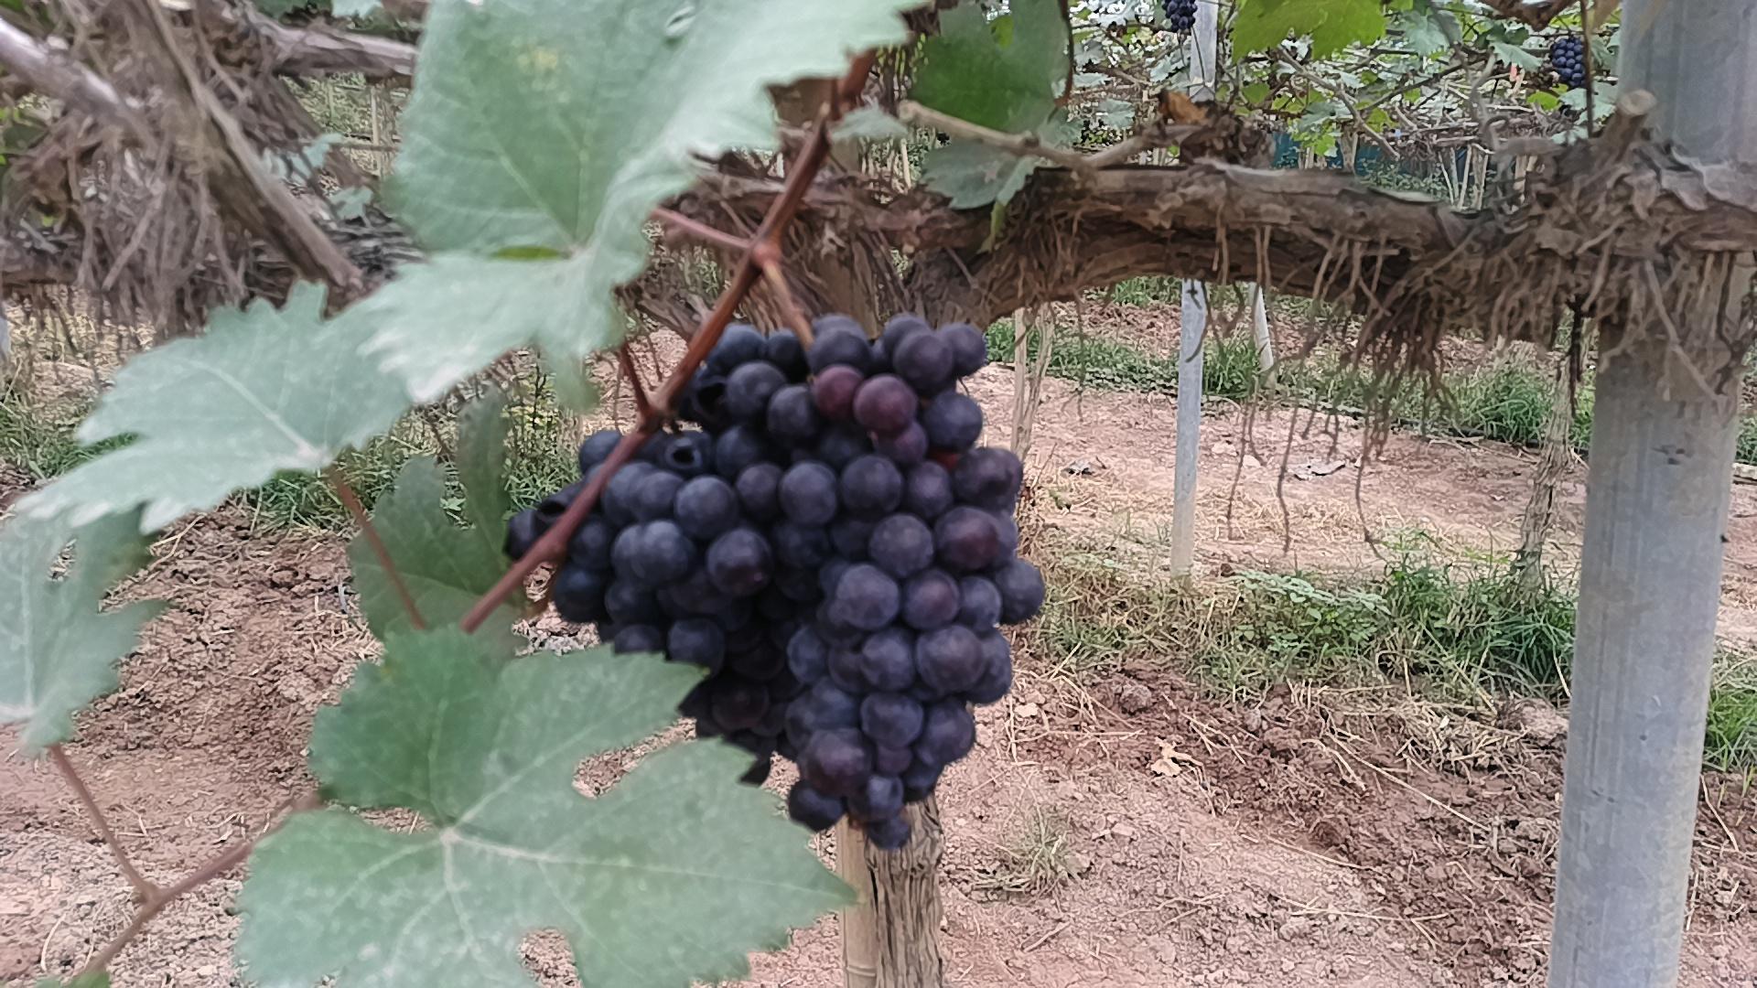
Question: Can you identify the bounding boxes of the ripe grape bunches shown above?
[503,316,1040,848]
[1547,35,1587,90]
[1161,0,1197,34]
